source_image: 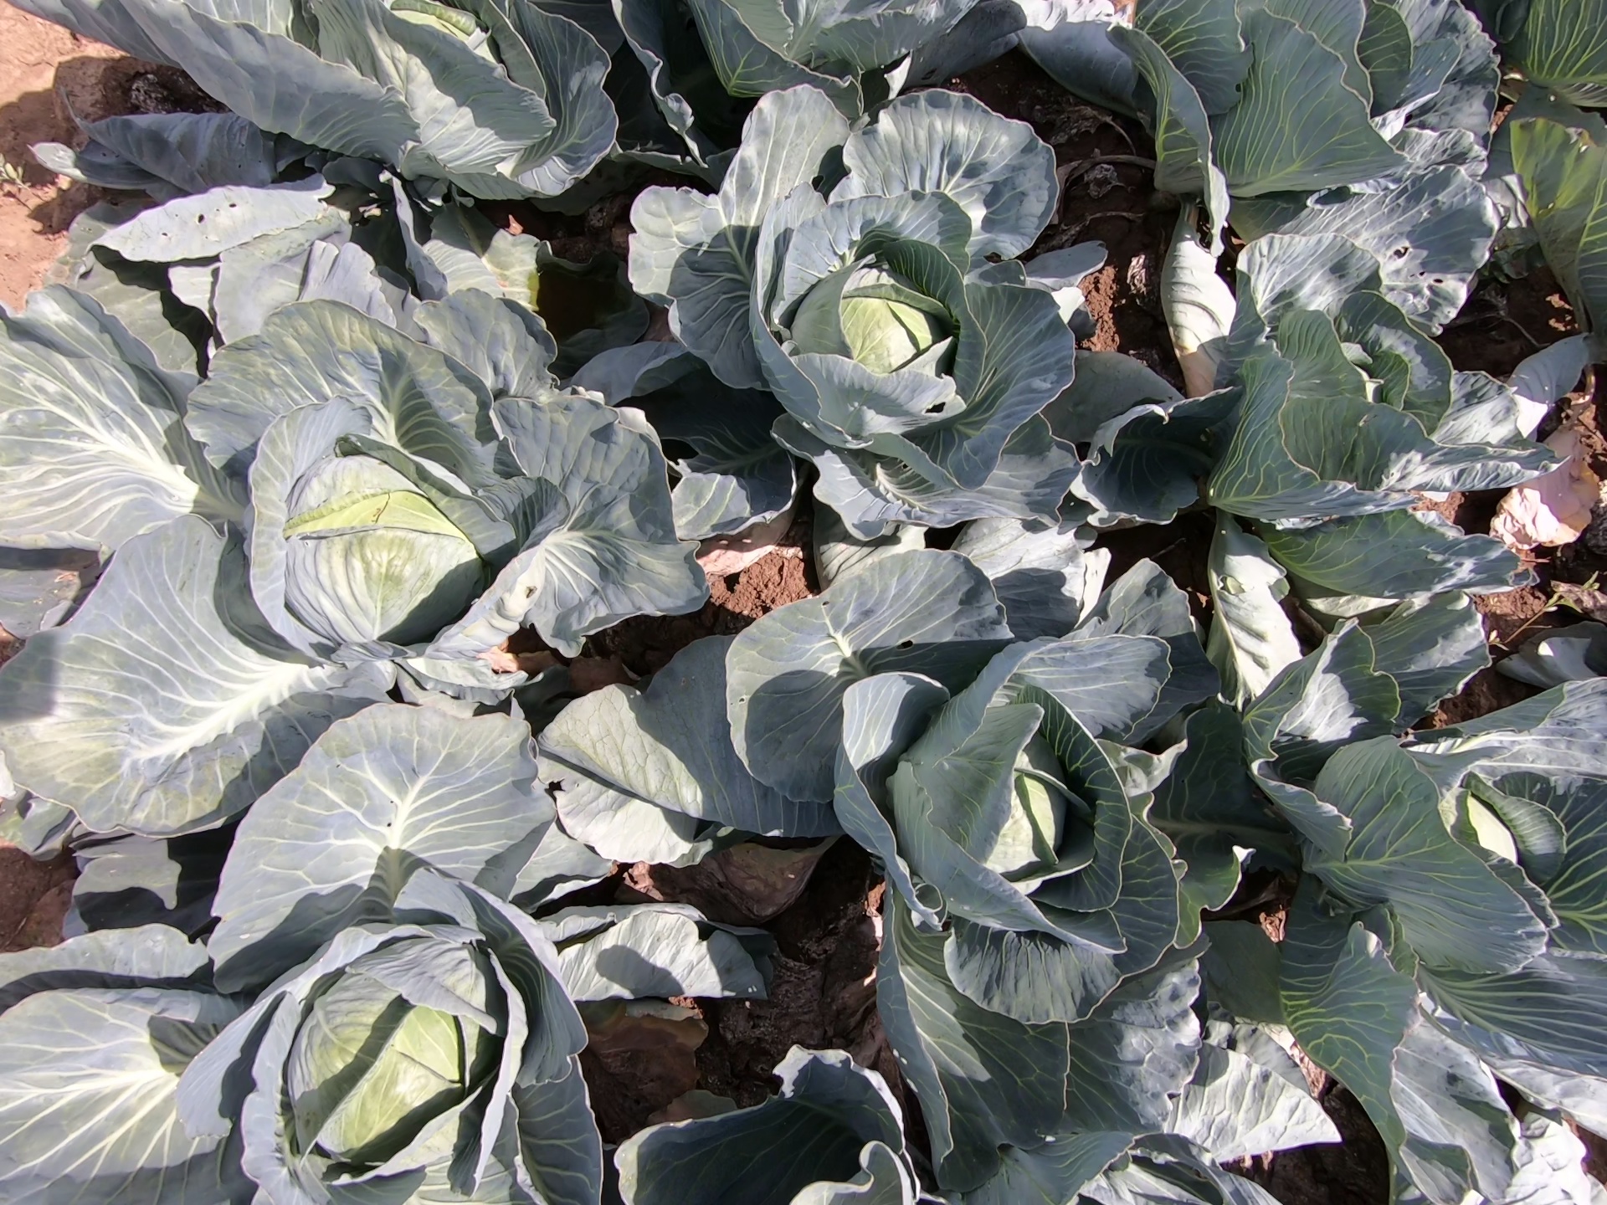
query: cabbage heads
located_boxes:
[1380,775,1520,916]
[787,265,952,434]
[281,941,521,1172]
[256,456,487,646]
[1258,346,1384,459]
[321,0,507,156]
[897,710,1066,905]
